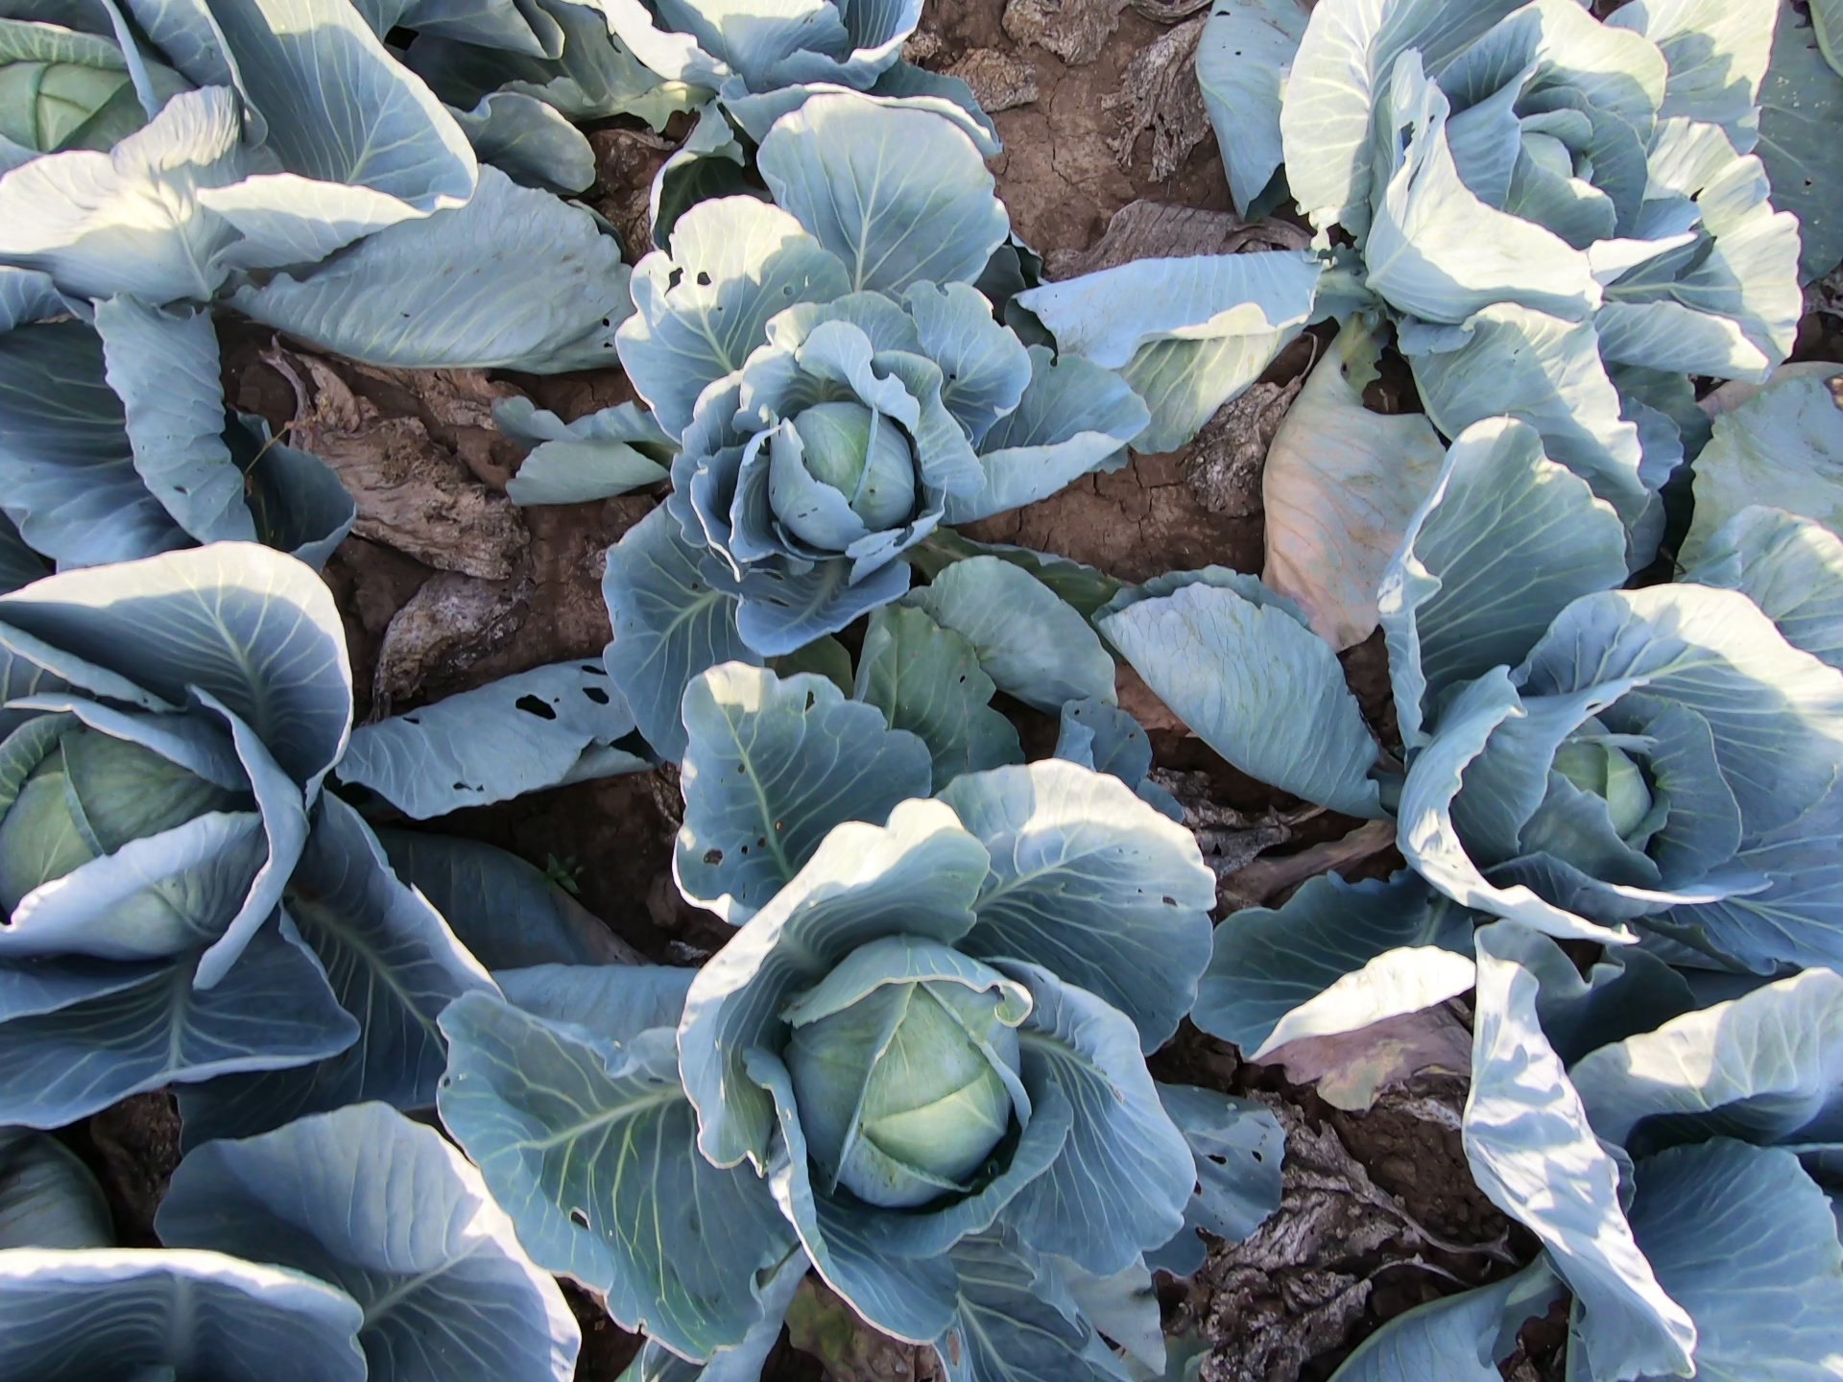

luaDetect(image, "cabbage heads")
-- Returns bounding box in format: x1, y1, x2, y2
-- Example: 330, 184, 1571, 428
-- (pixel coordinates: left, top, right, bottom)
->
1464, 701, 1644, 869
780, 397, 920, 536
4, 712, 275, 958
788, 948, 1017, 1206
2, 49, 227, 250
1404, 123, 1583, 298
